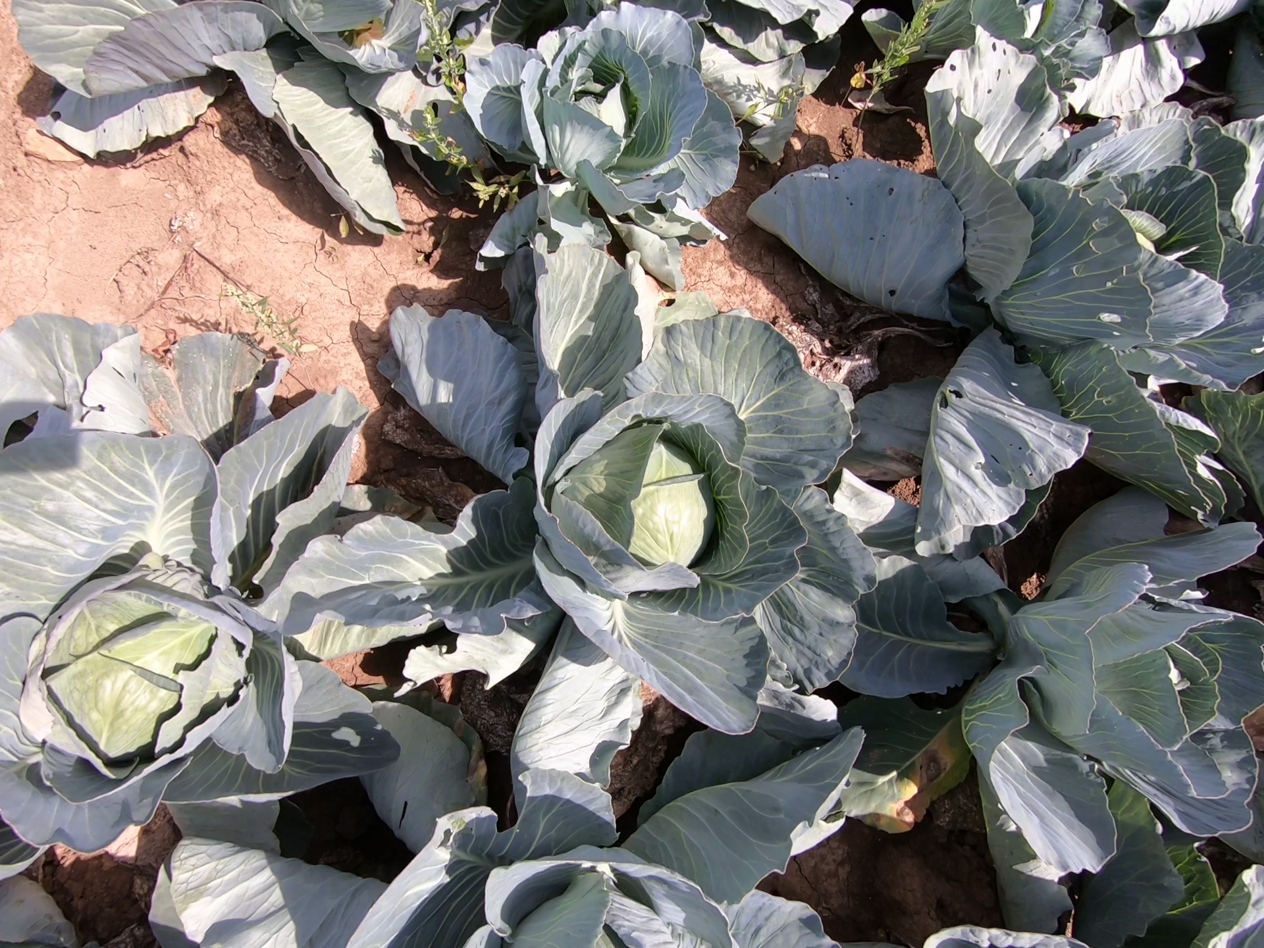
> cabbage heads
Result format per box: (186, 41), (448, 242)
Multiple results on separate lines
(33, 568), (242, 768)
(508, 887), (679, 947)
(1074, 215), (1158, 300)
(561, 426), (718, 578)
(1077, 638), (1186, 727)
(550, 87), (626, 157)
